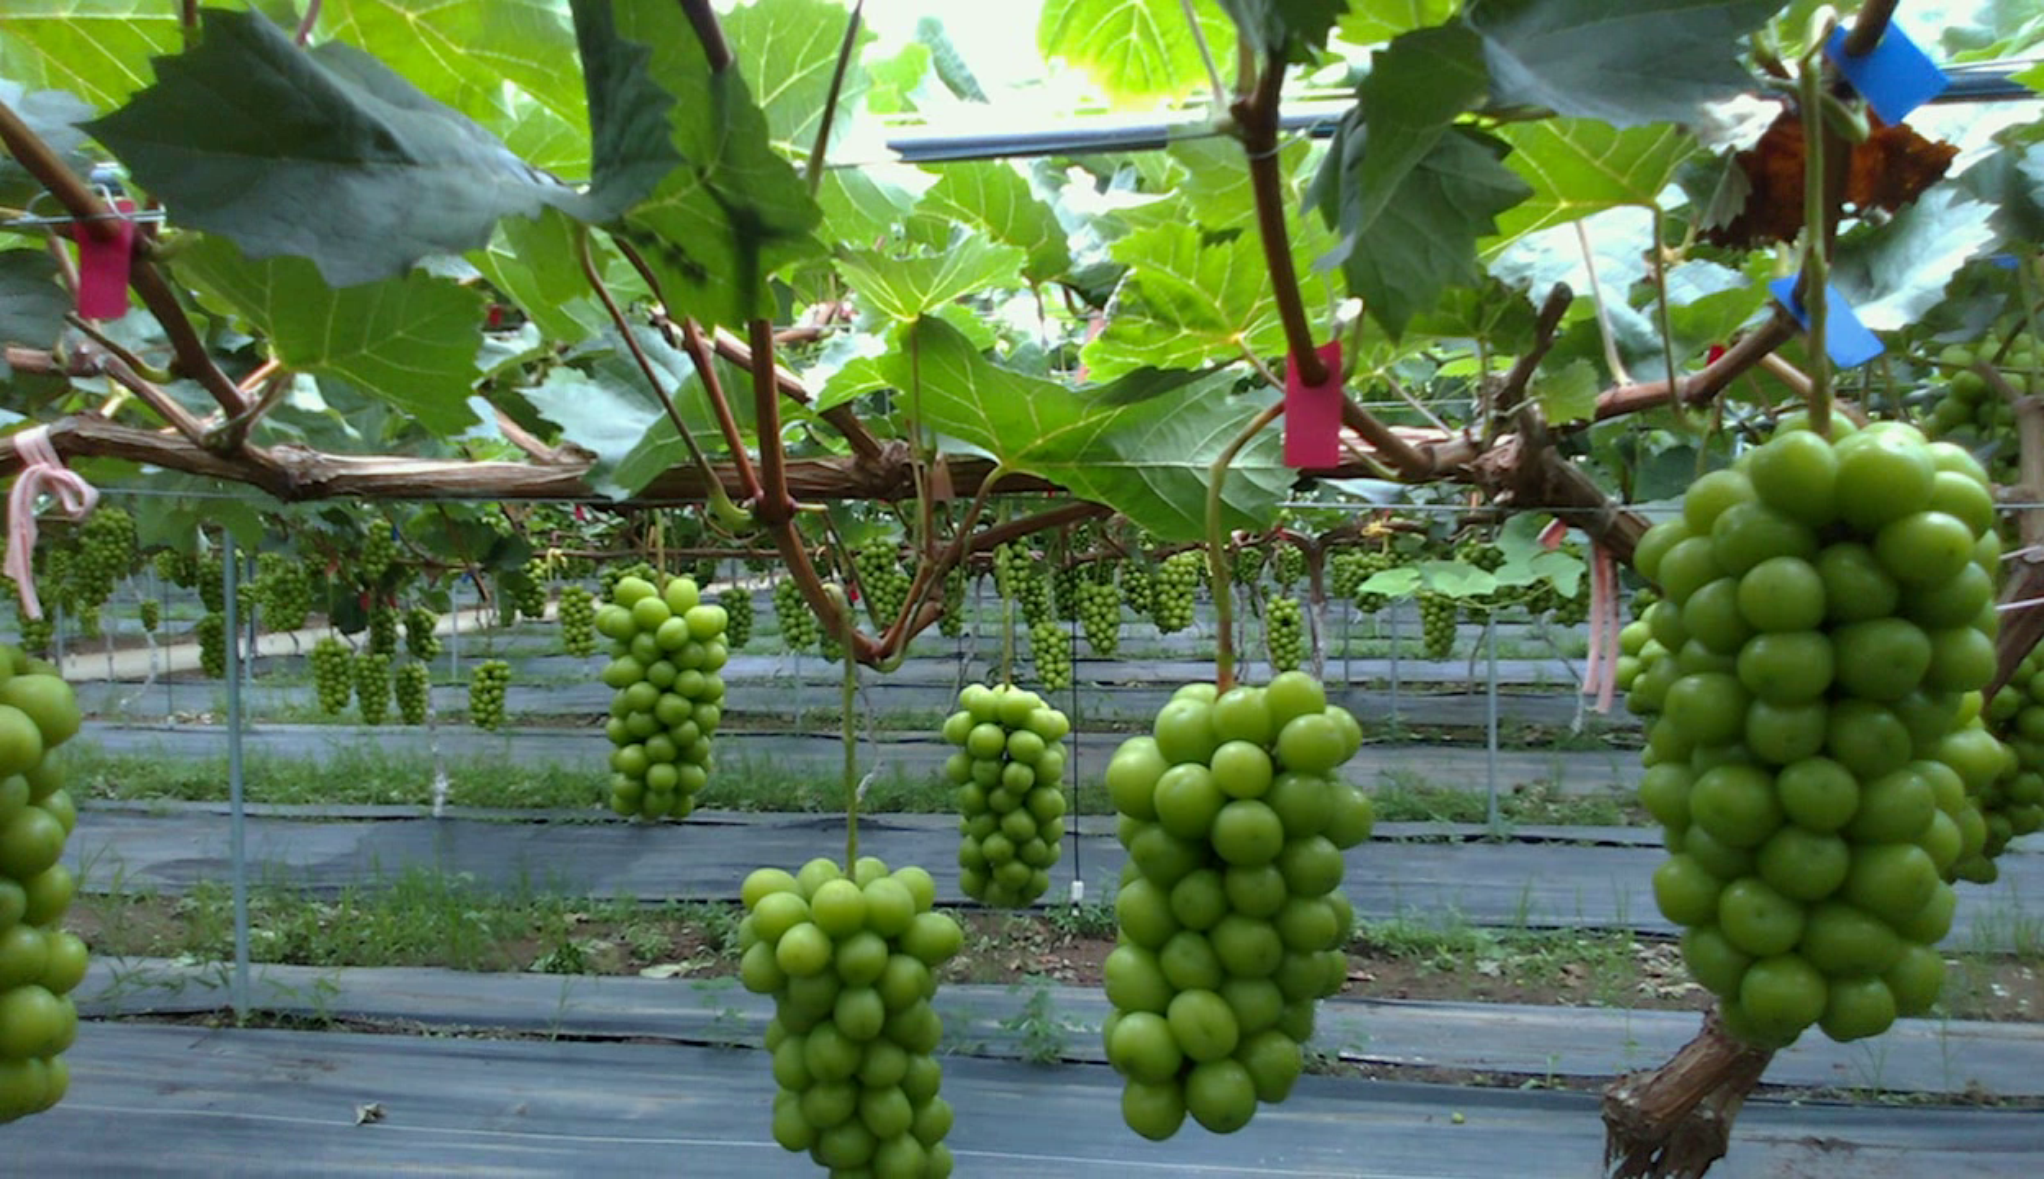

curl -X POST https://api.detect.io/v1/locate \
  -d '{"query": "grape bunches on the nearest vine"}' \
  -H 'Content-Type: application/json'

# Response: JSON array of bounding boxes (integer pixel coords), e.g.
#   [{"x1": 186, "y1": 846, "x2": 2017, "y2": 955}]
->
[
  {"x1": 2, "y1": 640, "x2": 88, "y2": 1122},
  {"x1": 1101, "y1": 668, "x2": 1374, "y2": 1141},
  {"x1": 739, "y1": 855, "x2": 961, "y2": 1177},
  {"x1": 1636, "y1": 403, "x2": 2005, "y2": 1053}
]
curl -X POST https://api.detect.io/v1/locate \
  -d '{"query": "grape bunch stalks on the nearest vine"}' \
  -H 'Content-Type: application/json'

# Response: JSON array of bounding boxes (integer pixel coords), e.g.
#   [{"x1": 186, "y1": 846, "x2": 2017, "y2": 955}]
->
[
  {"x1": 1798, "y1": 7, "x2": 1839, "y2": 440},
  {"x1": 827, "y1": 581, "x2": 857, "y2": 884},
  {"x1": 1205, "y1": 393, "x2": 1284, "y2": 701}
]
